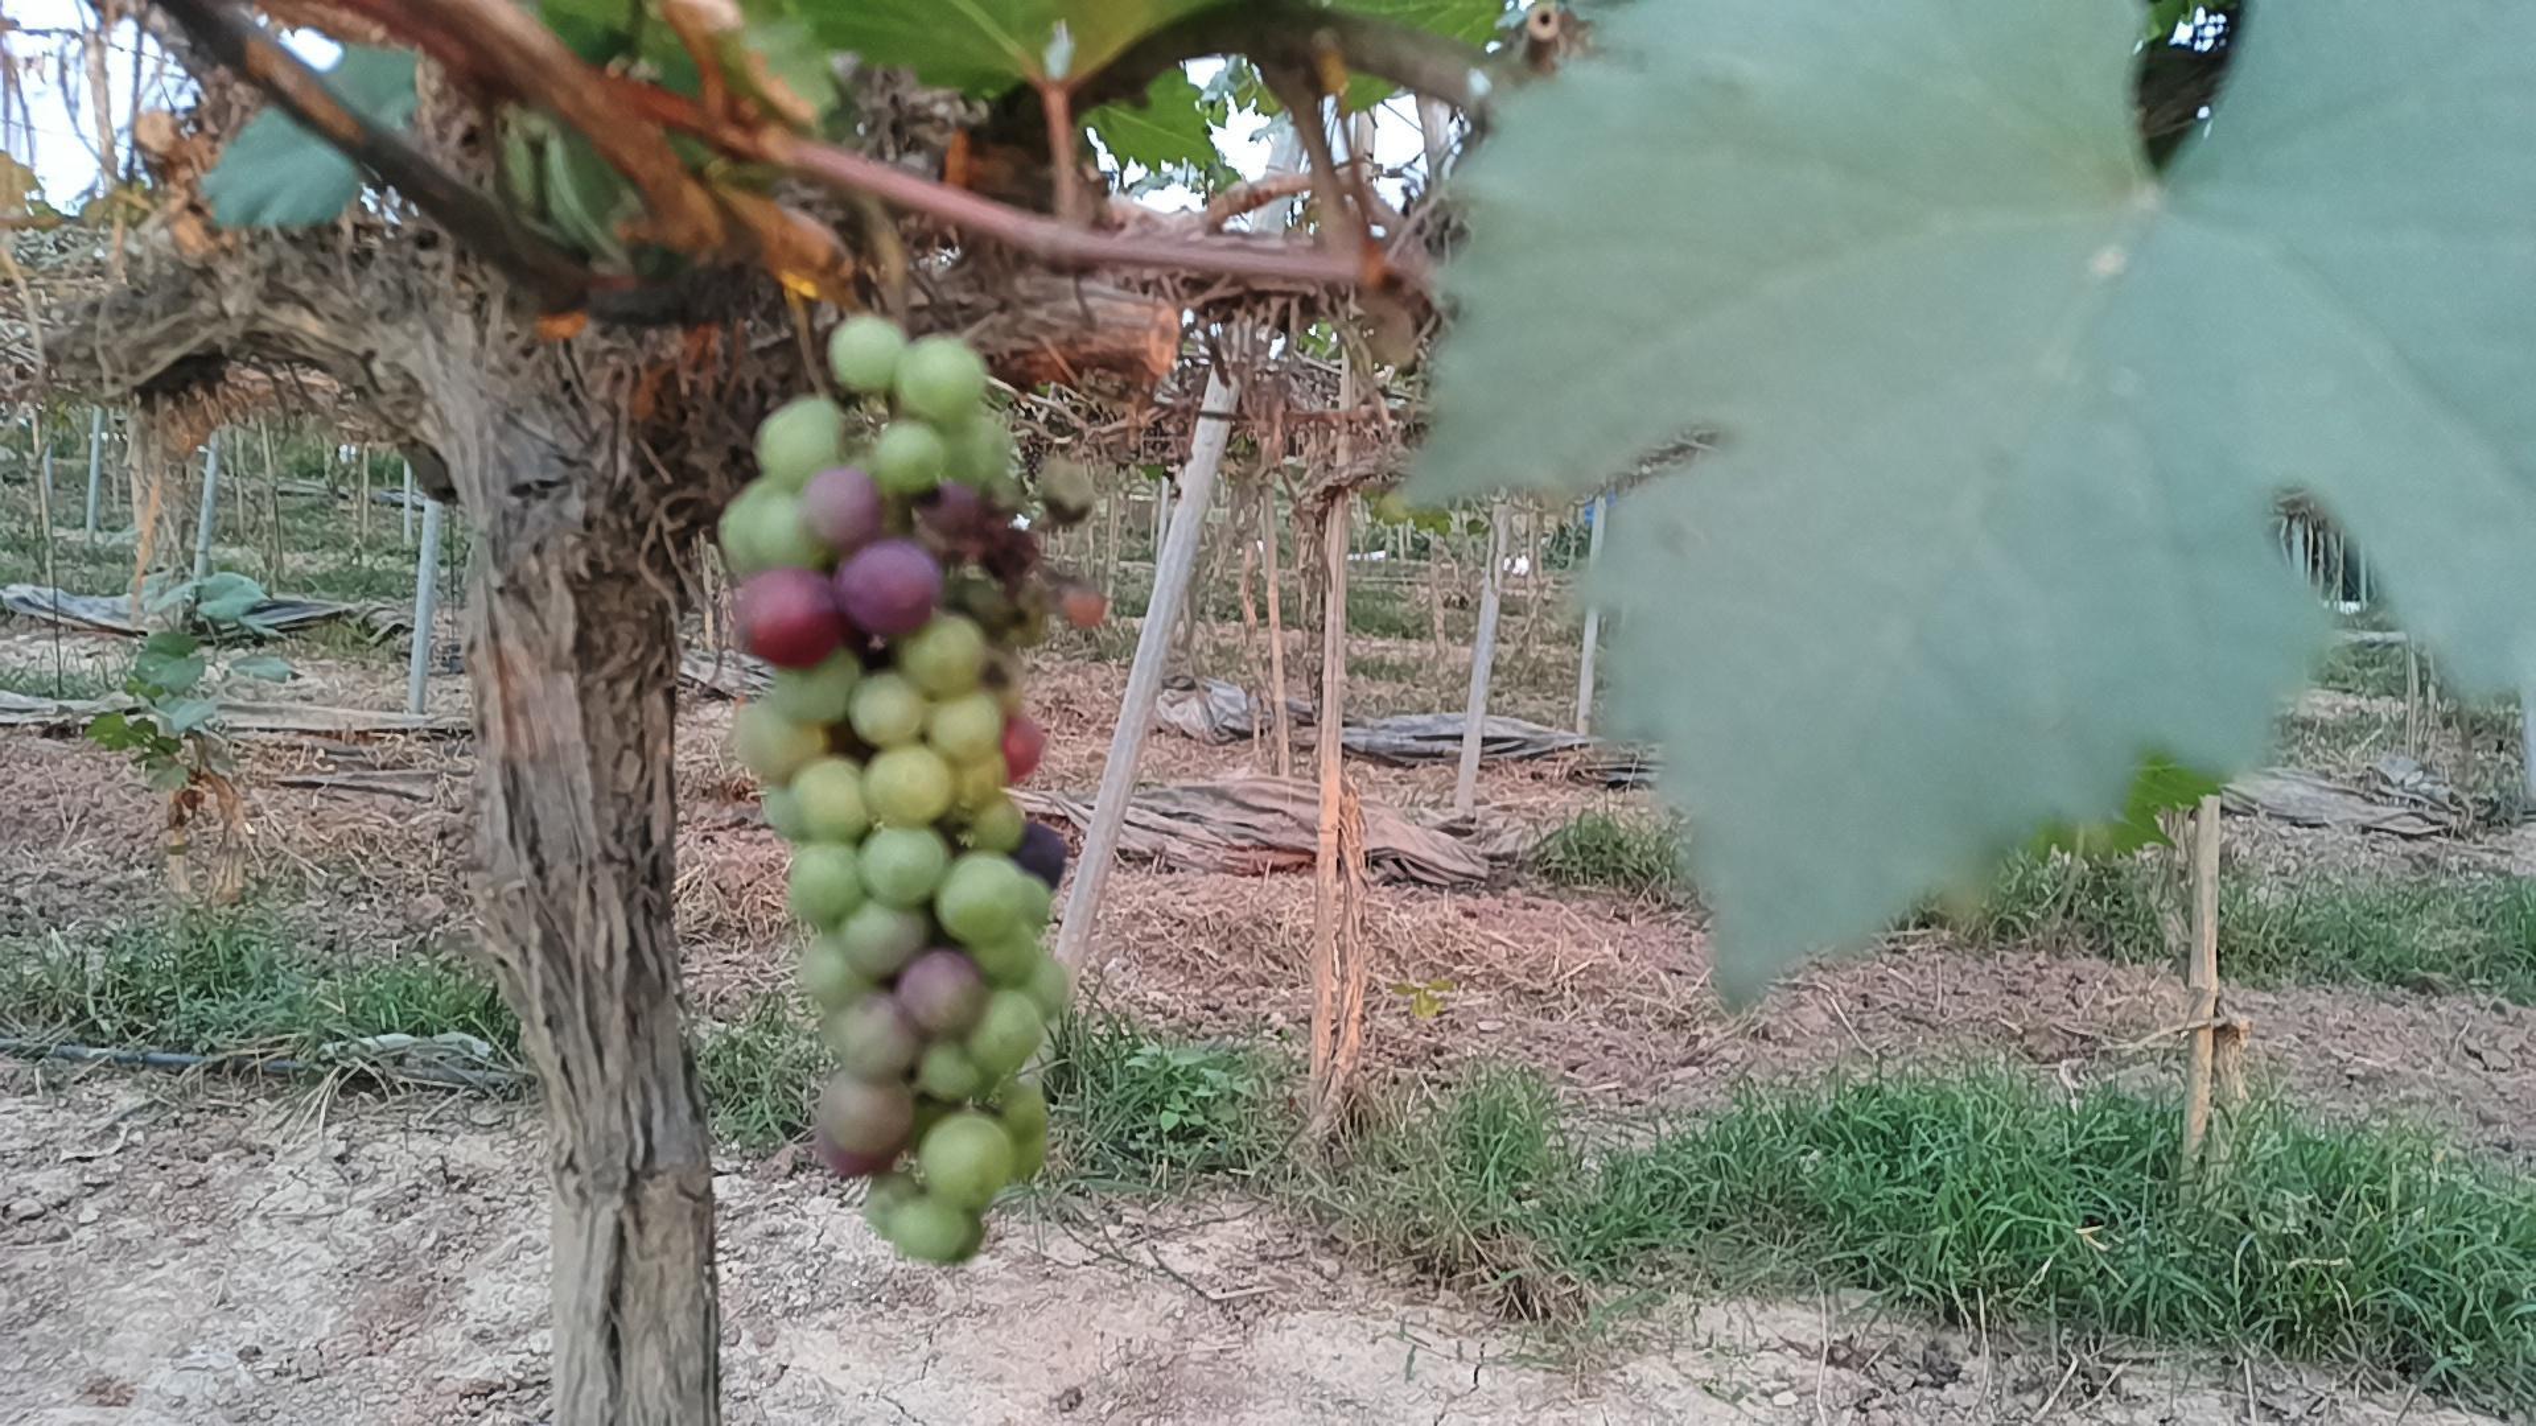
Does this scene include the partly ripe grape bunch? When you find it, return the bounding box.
[719,314,1109,1262]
